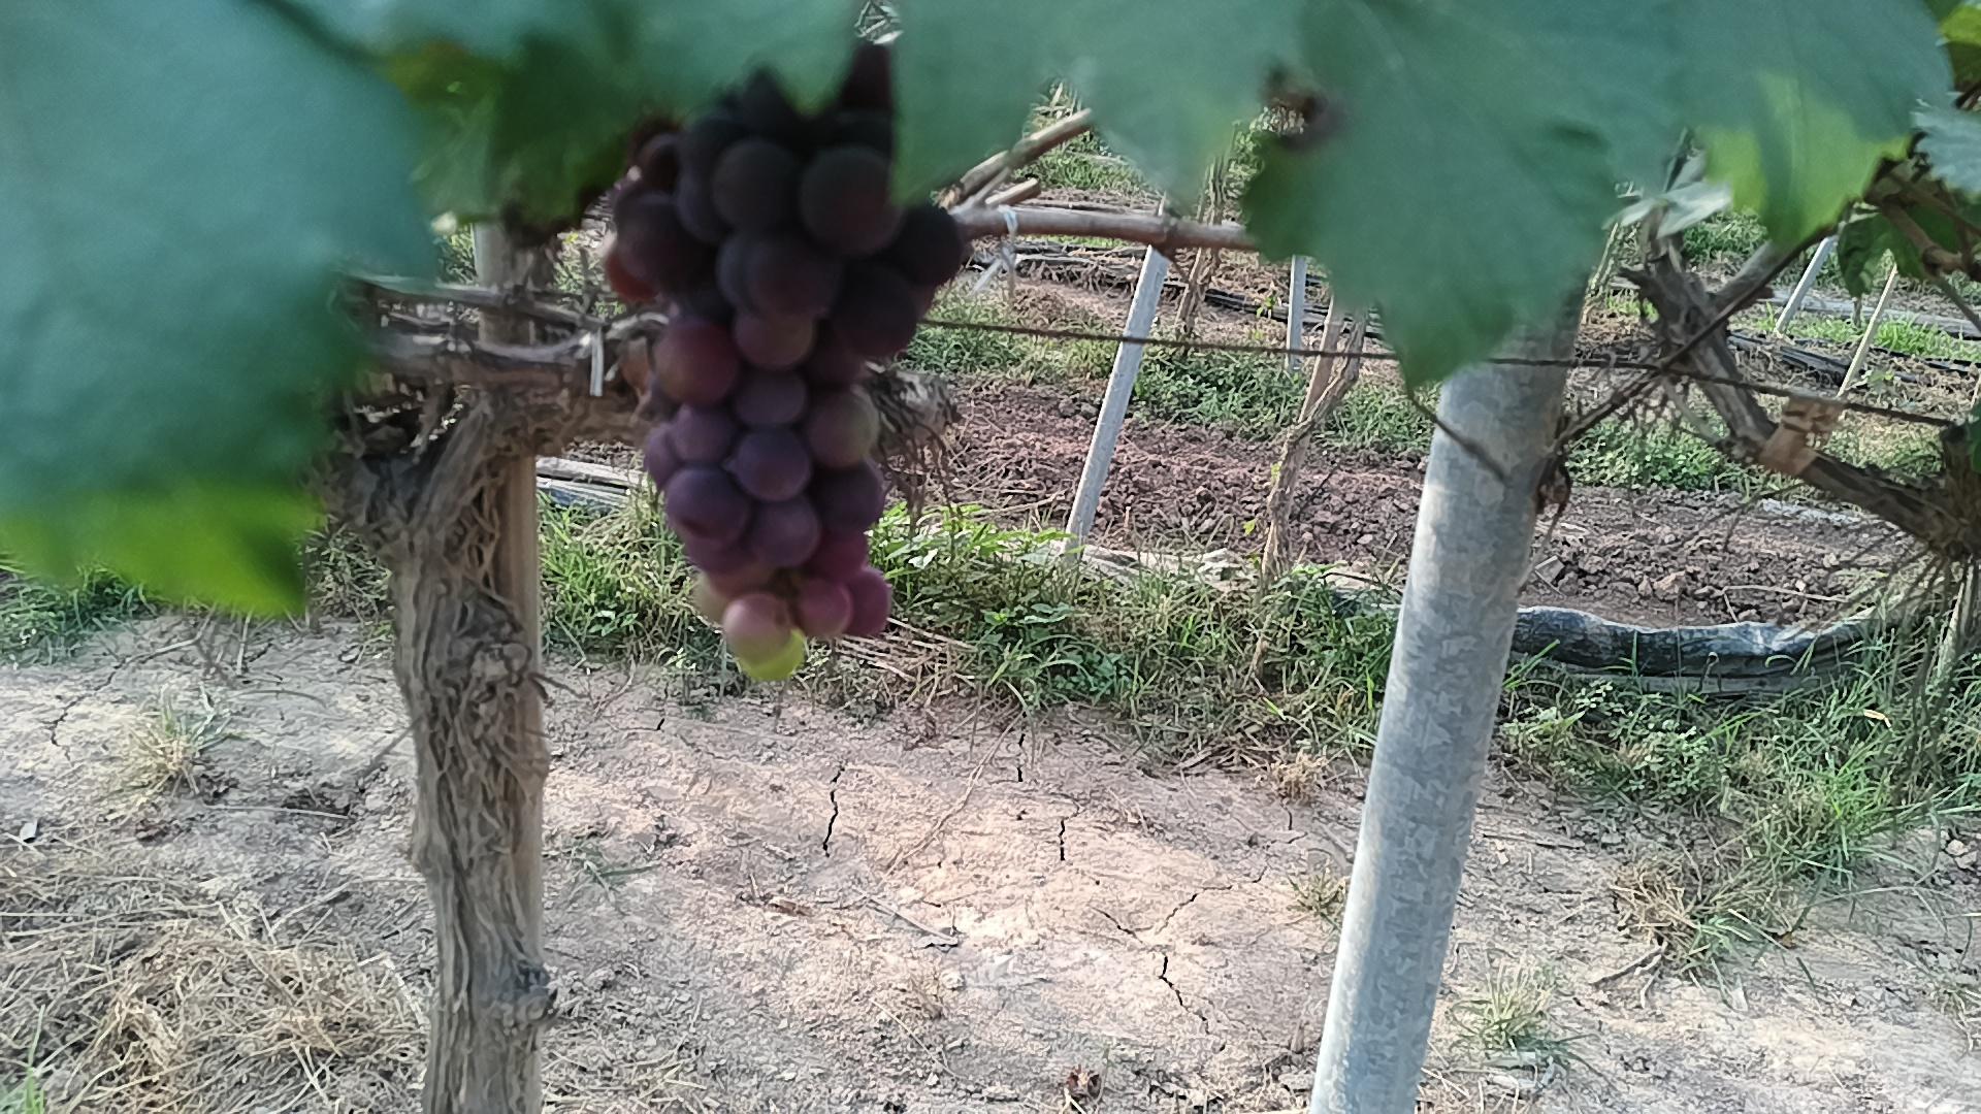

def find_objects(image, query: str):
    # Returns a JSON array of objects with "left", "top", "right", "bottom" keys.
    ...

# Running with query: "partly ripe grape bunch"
[{"left": 606, "top": 42, "right": 971, "bottom": 678}]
